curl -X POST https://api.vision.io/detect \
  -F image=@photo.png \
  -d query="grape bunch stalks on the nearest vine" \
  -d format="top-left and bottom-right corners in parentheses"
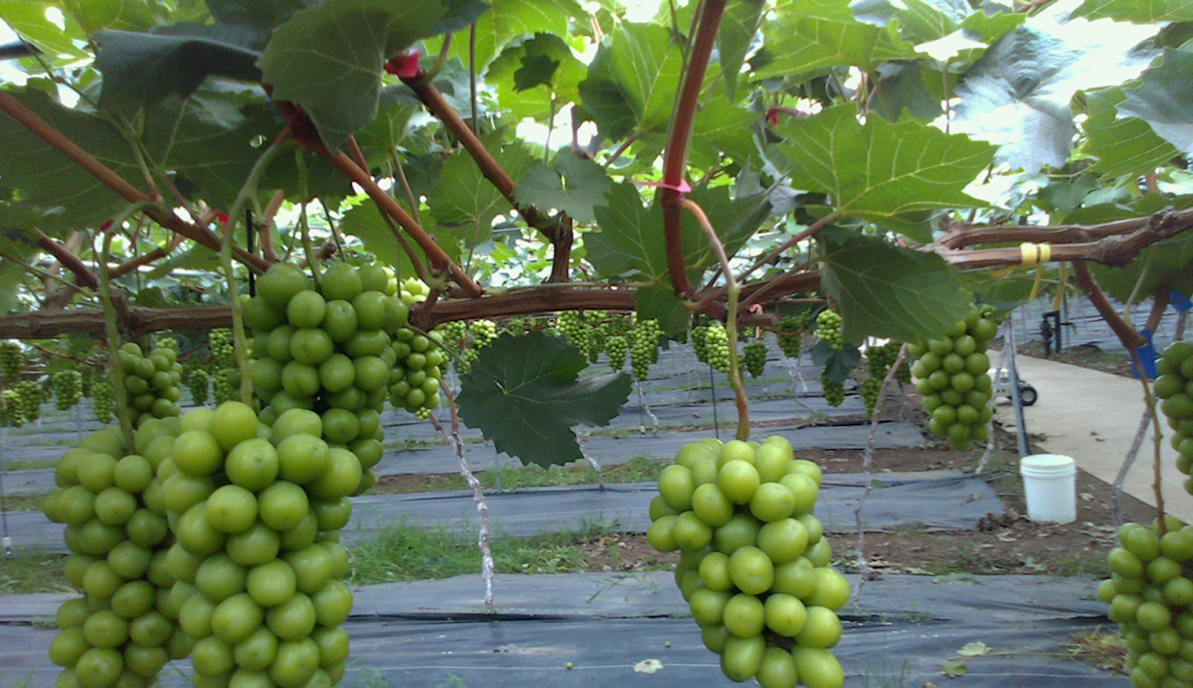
top-left (98, 201), bottom-right (156, 454)
top-left (295, 152), bottom-right (323, 291)
top-left (221, 140), bottom-right (287, 406)
top-left (681, 198), bottom-right (749, 440)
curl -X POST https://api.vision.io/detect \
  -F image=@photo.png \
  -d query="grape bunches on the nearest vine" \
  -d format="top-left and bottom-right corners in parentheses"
top-left (159, 401), bottom-right (364, 687)
top-left (645, 435), bottom-right (851, 687)
top-left (41, 418), bottom-right (194, 687)
top-left (243, 261), bottom-right (405, 497)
